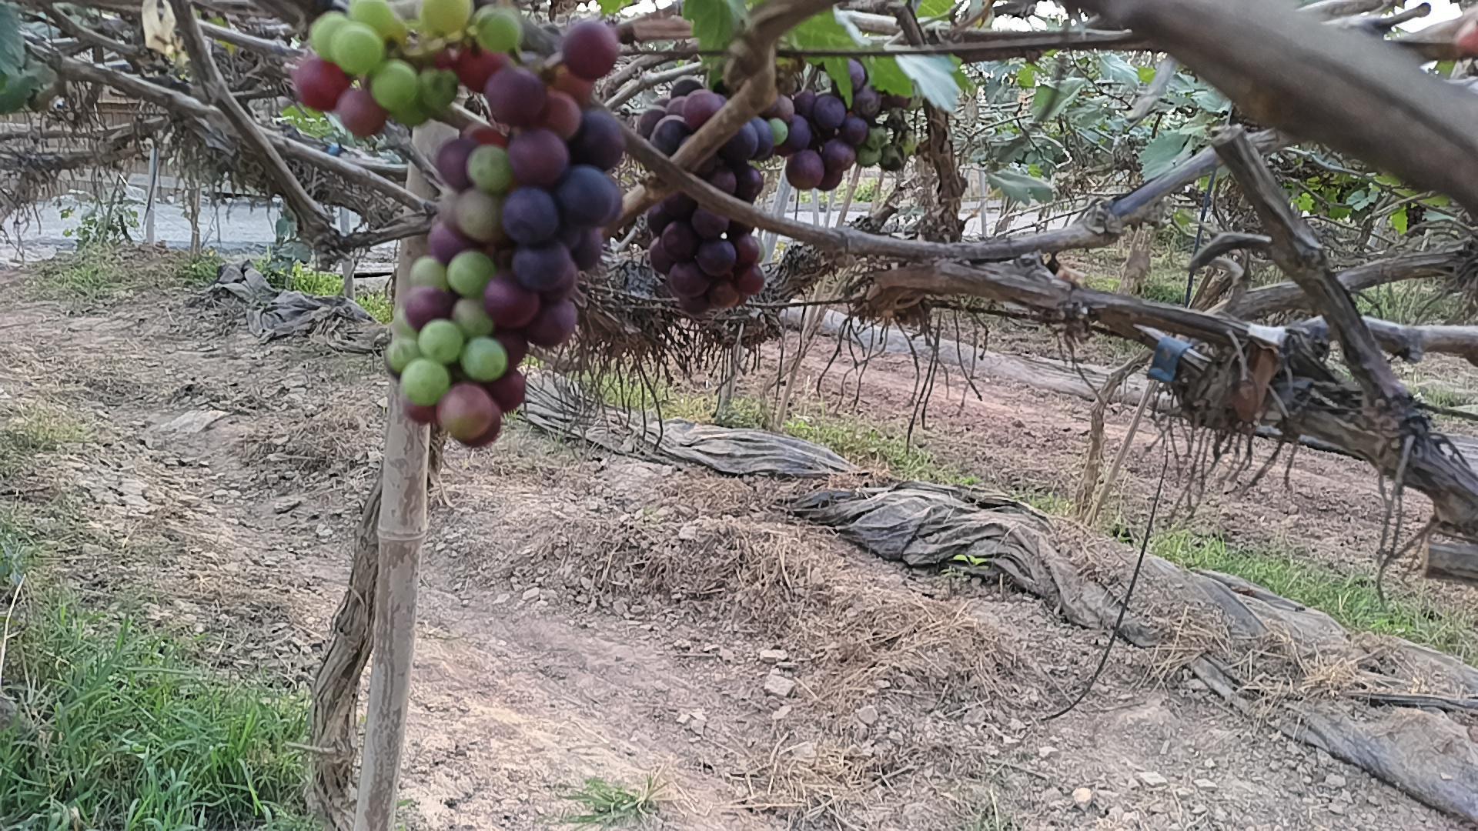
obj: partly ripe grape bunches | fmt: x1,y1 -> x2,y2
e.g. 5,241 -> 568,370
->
293,0 -> 525,137
774,55 -> 921,192
384,21 -> 626,447
637,77 -> 795,315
